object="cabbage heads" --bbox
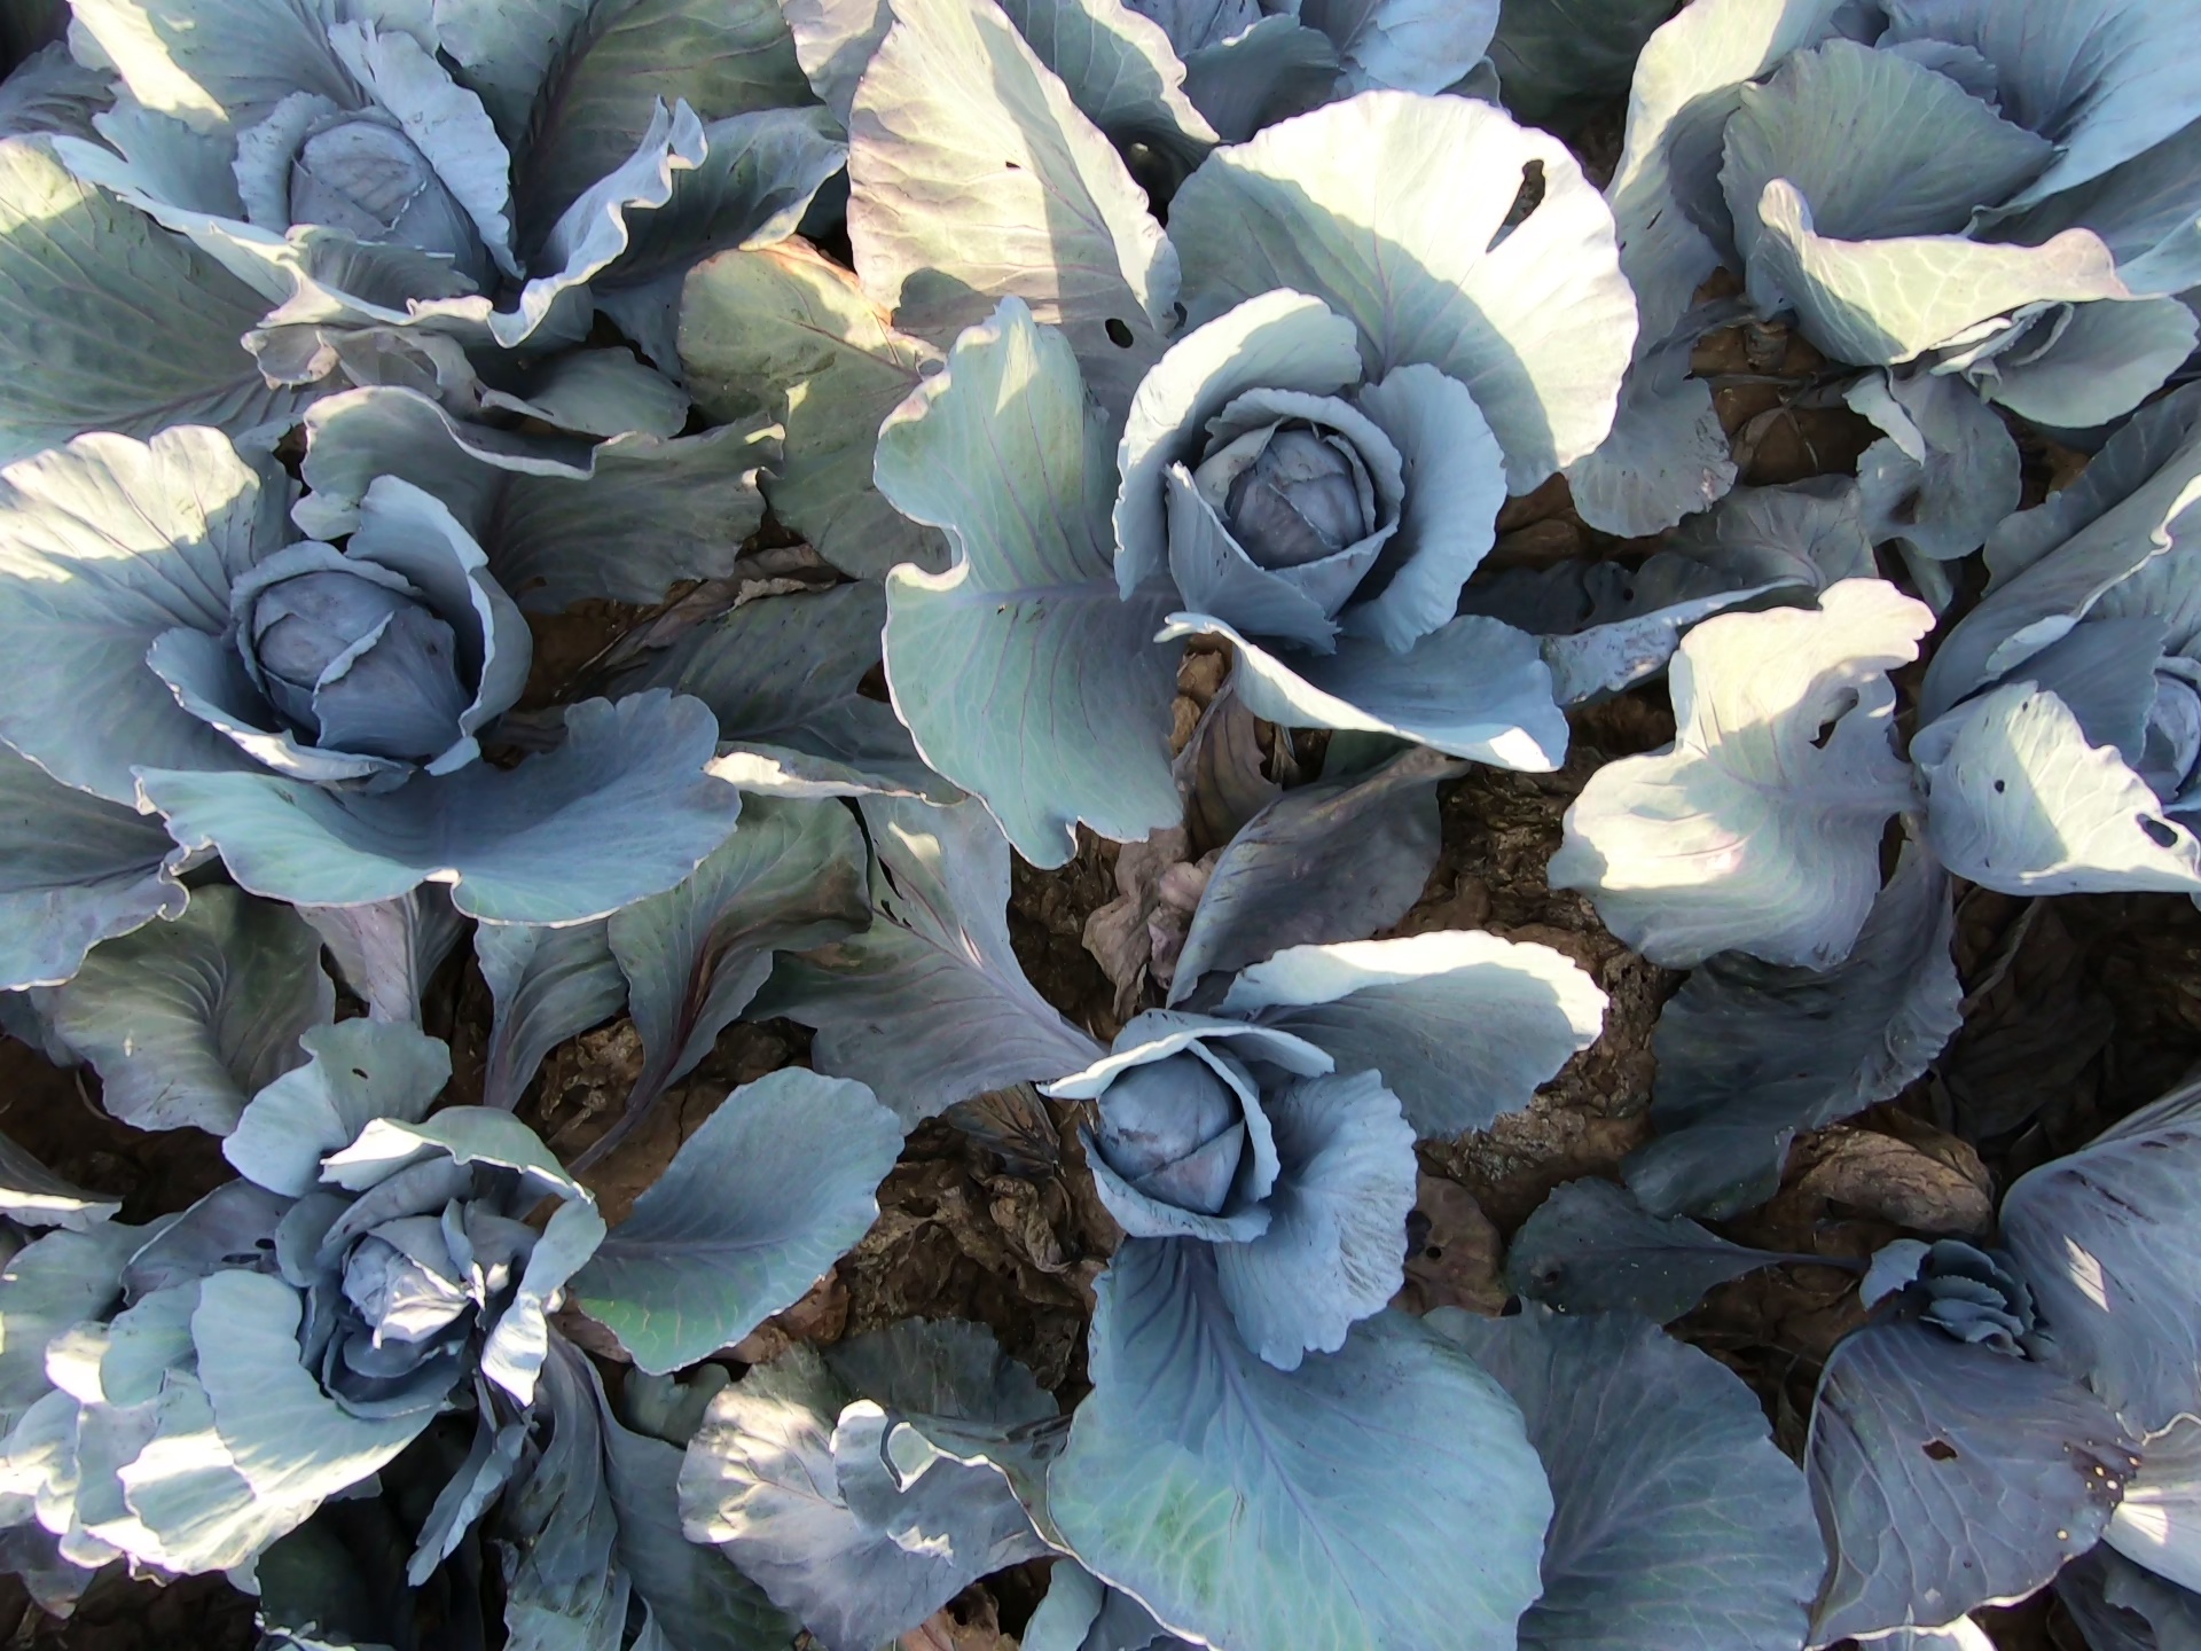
[1190,428,1368,625]
[249,569,433,731]
[1097,1041,1248,1221]
[277,115,485,302]
[2030,671,2199,842]
[1056,3,1263,124]
[345,1223,465,1338]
